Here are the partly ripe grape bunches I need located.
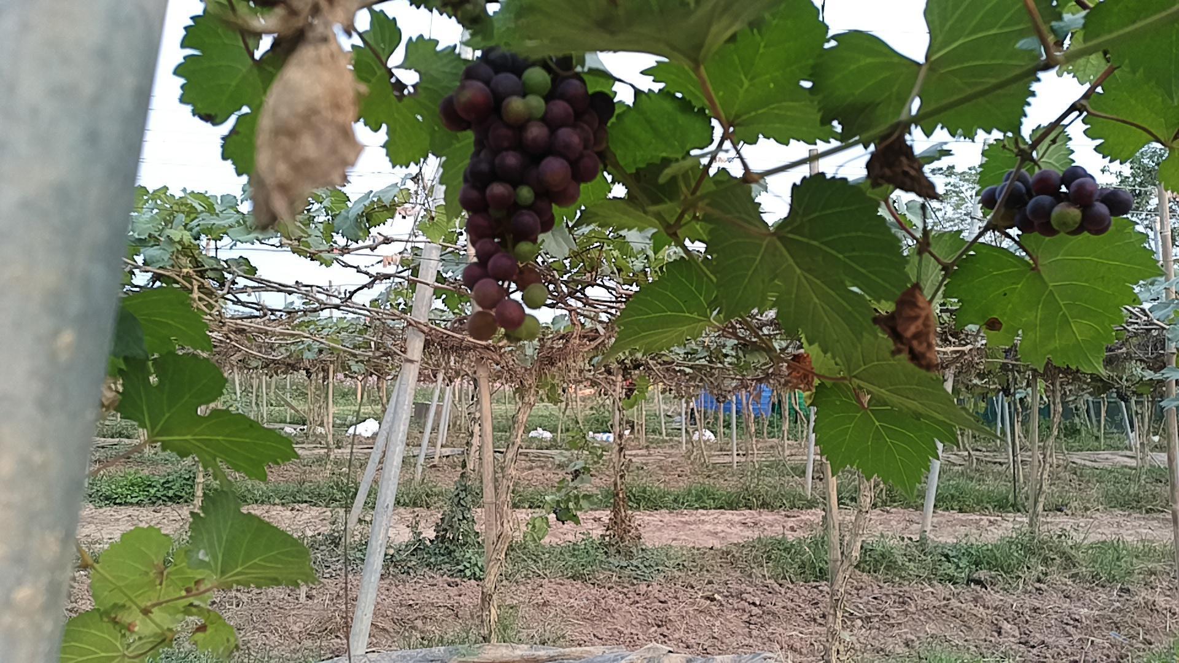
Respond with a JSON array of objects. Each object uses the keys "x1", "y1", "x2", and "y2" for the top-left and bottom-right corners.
[
  {"x1": 980, "y1": 166, "x2": 1134, "y2": 236},
  {"x1": 440, "y1": 47, "x2": 613, "y2": 341}
]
